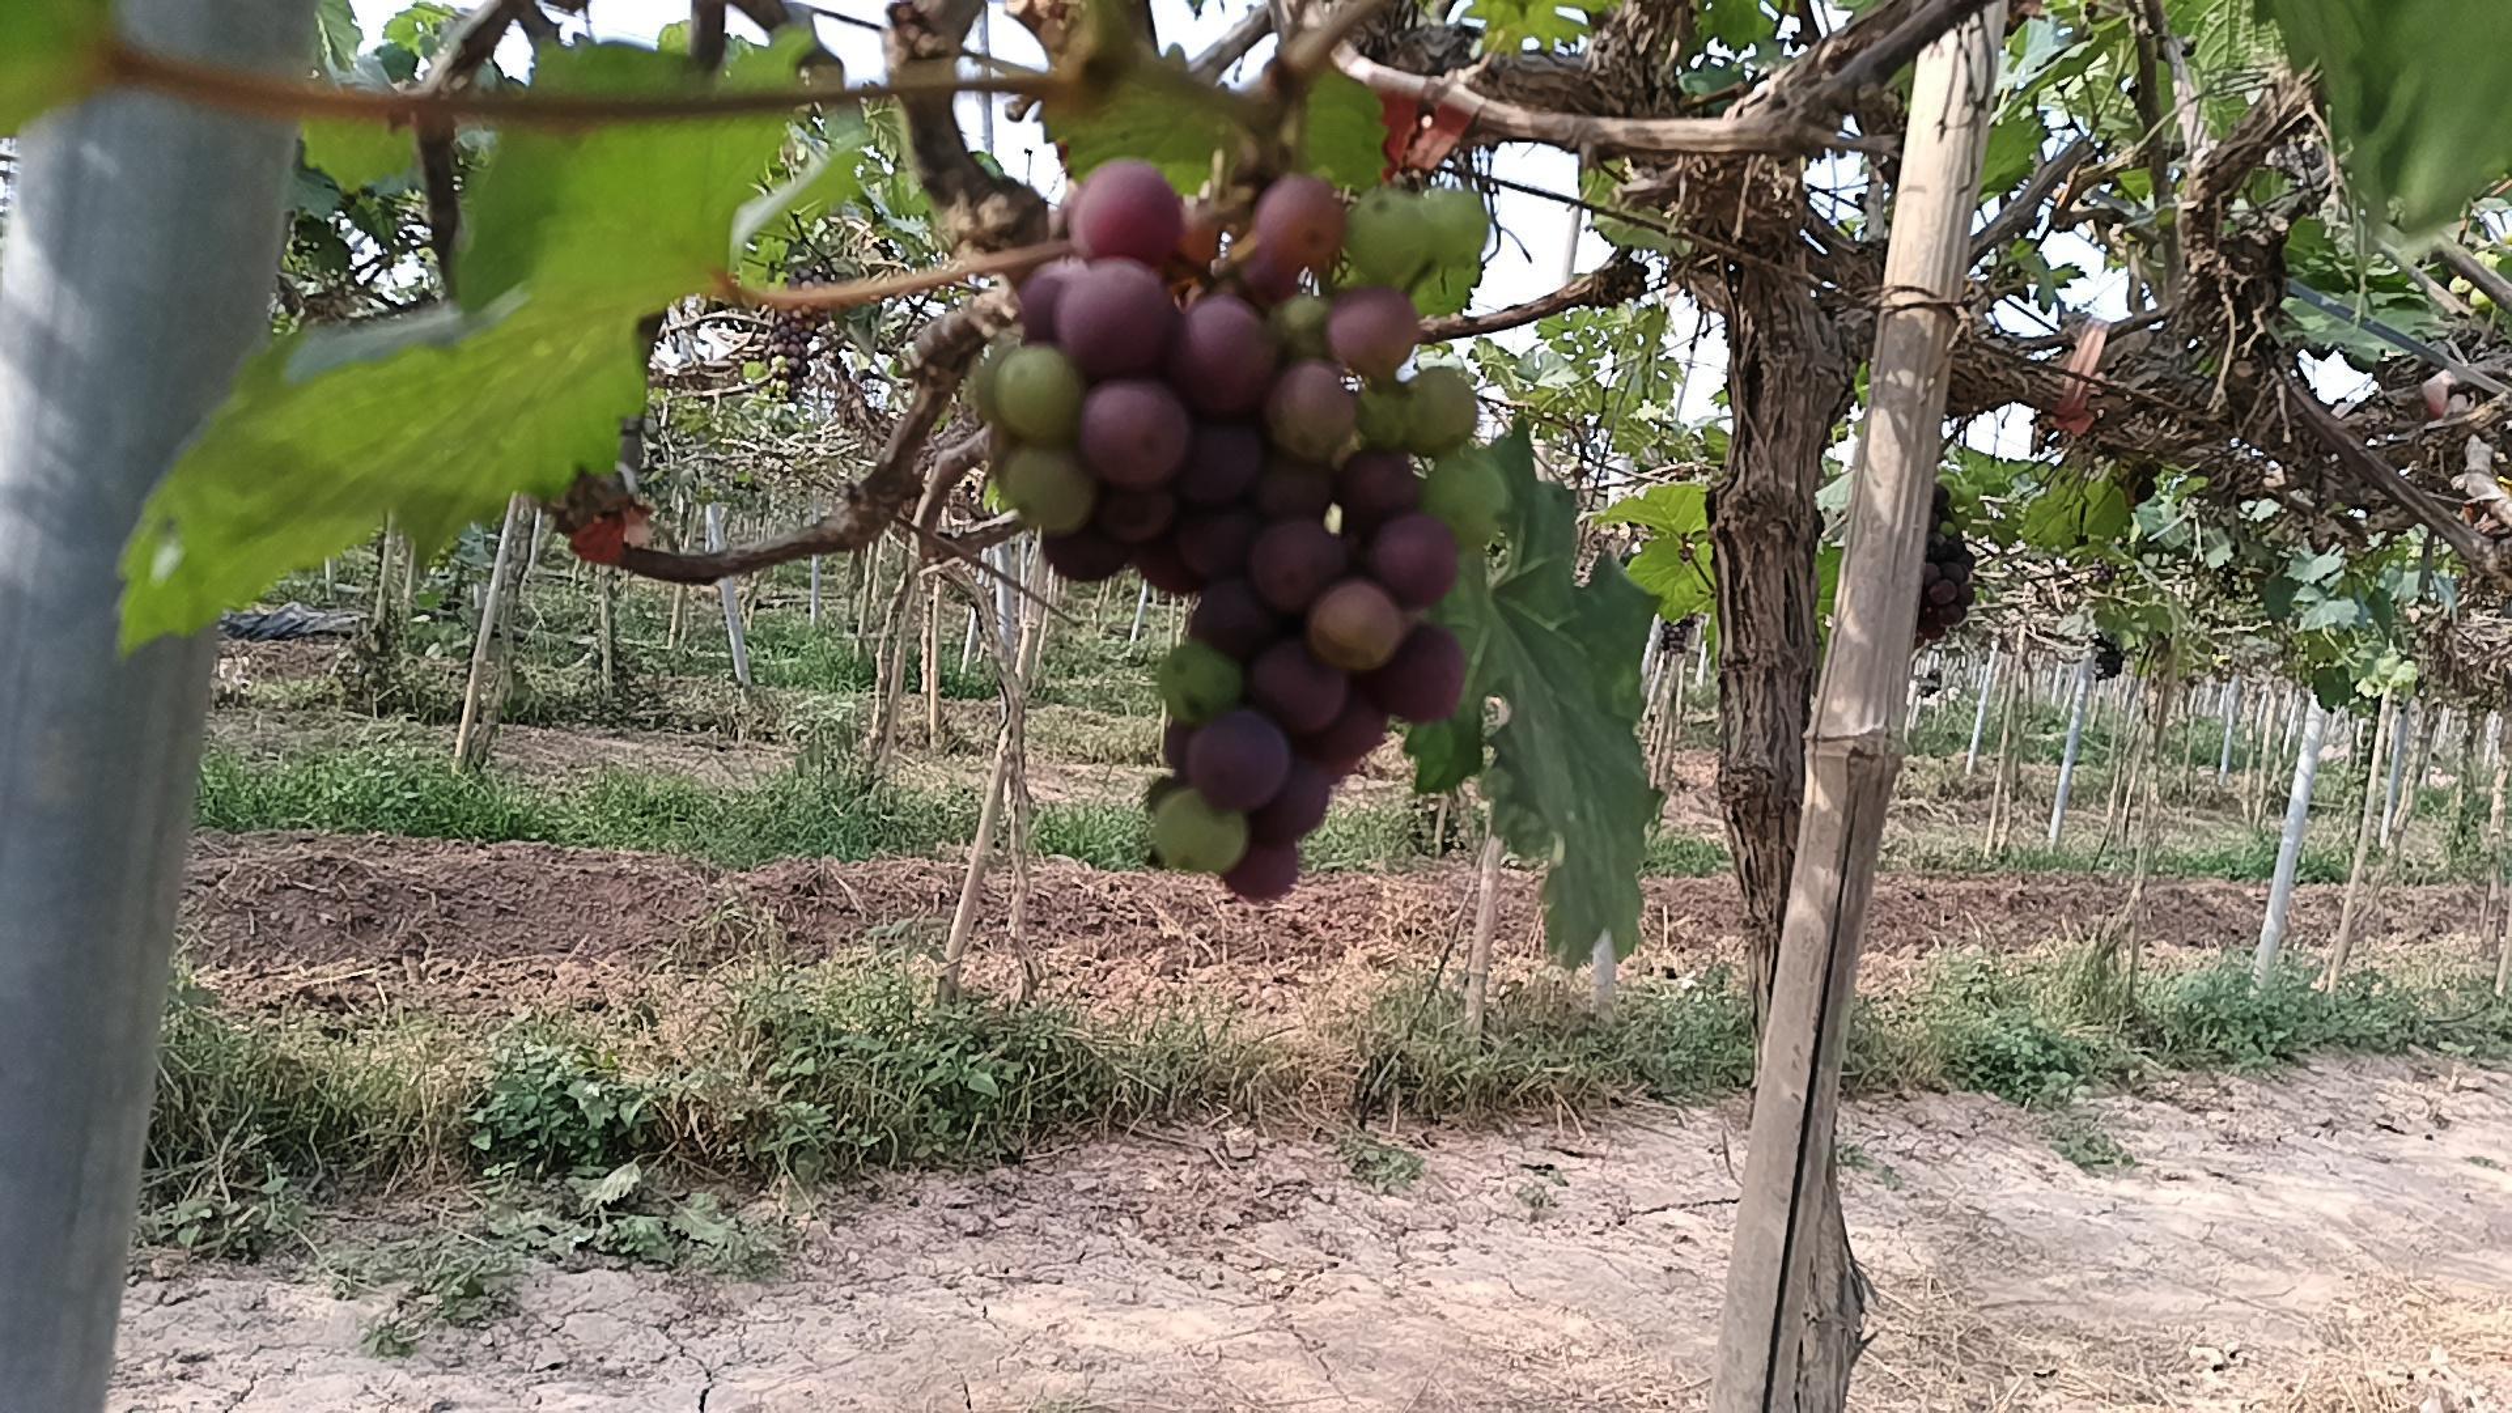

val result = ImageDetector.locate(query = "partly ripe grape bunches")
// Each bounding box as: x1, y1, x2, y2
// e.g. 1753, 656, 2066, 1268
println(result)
976, 162, 1507, 900
1915, 484, 1976, 646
